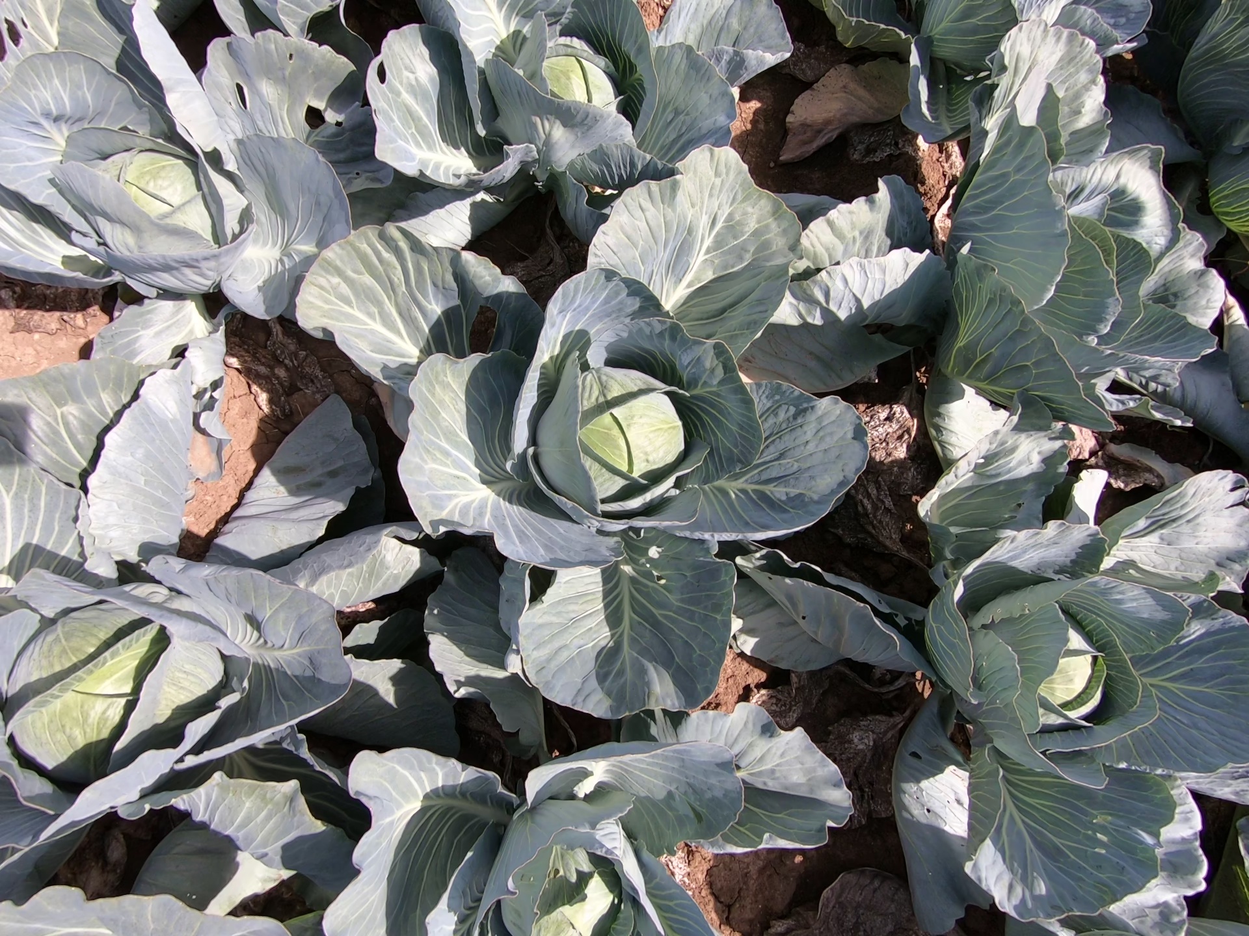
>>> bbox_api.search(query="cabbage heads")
[979,611,1109,734]
[541,366,686,510]
[86,142,232,270]
[500,801,639,931]
[1,601,221,793]
[512,37,623,155]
